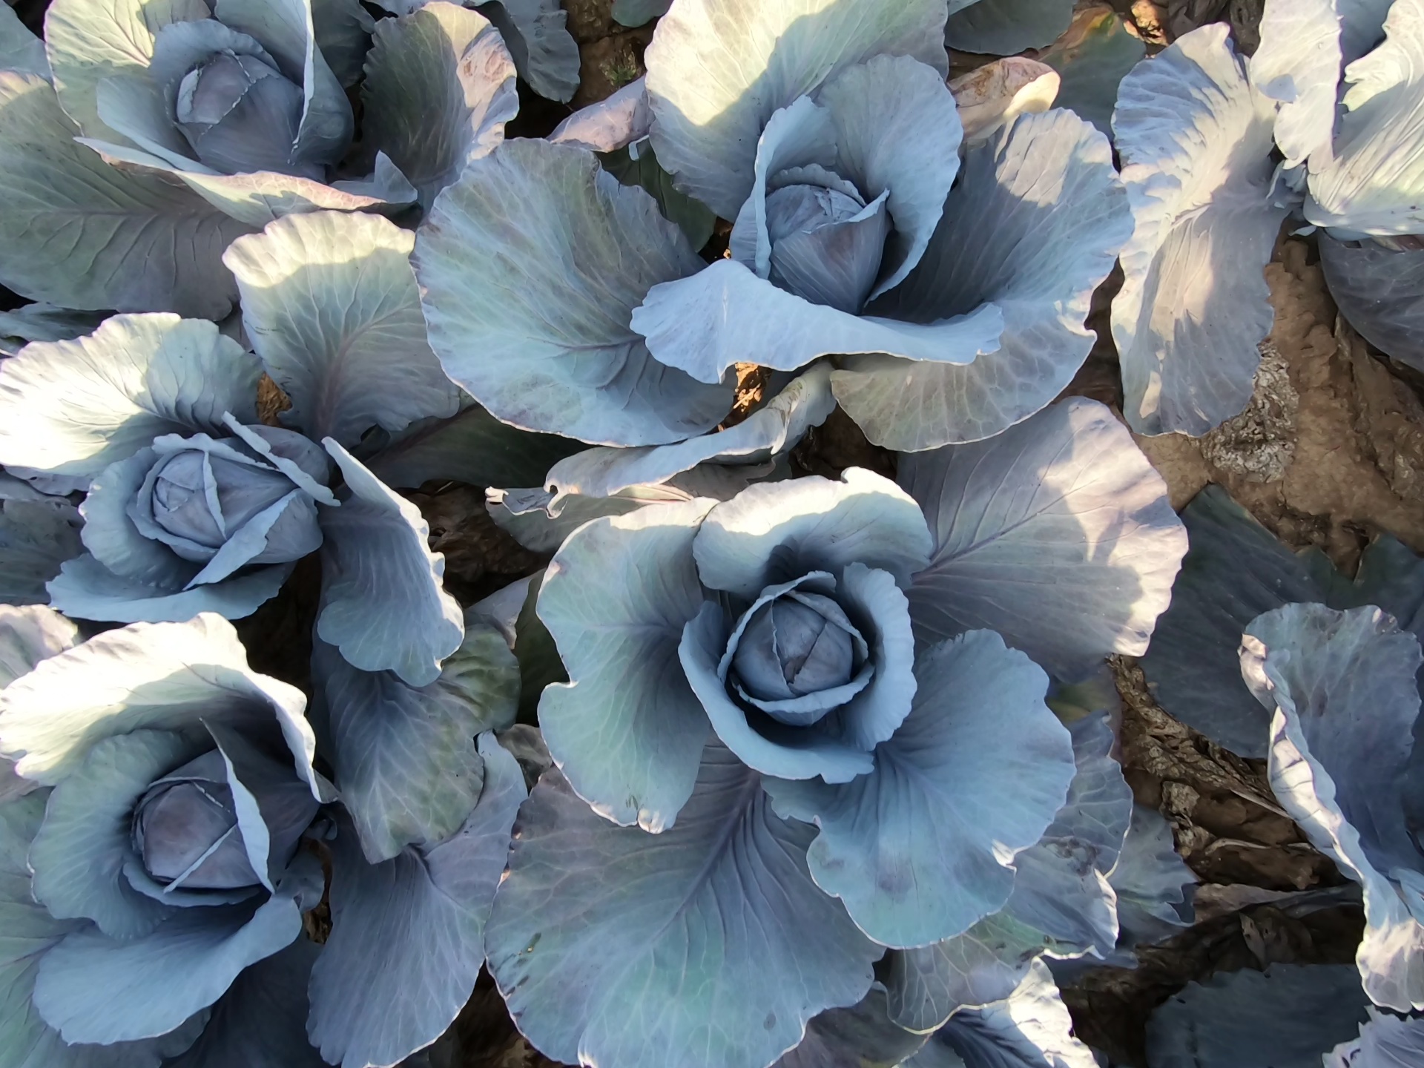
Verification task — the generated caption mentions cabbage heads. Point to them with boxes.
[750,182,876,311]
[146,443,303,555]
[178,51,303,171]
[734,594,854,722]
[131,756,290,891]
